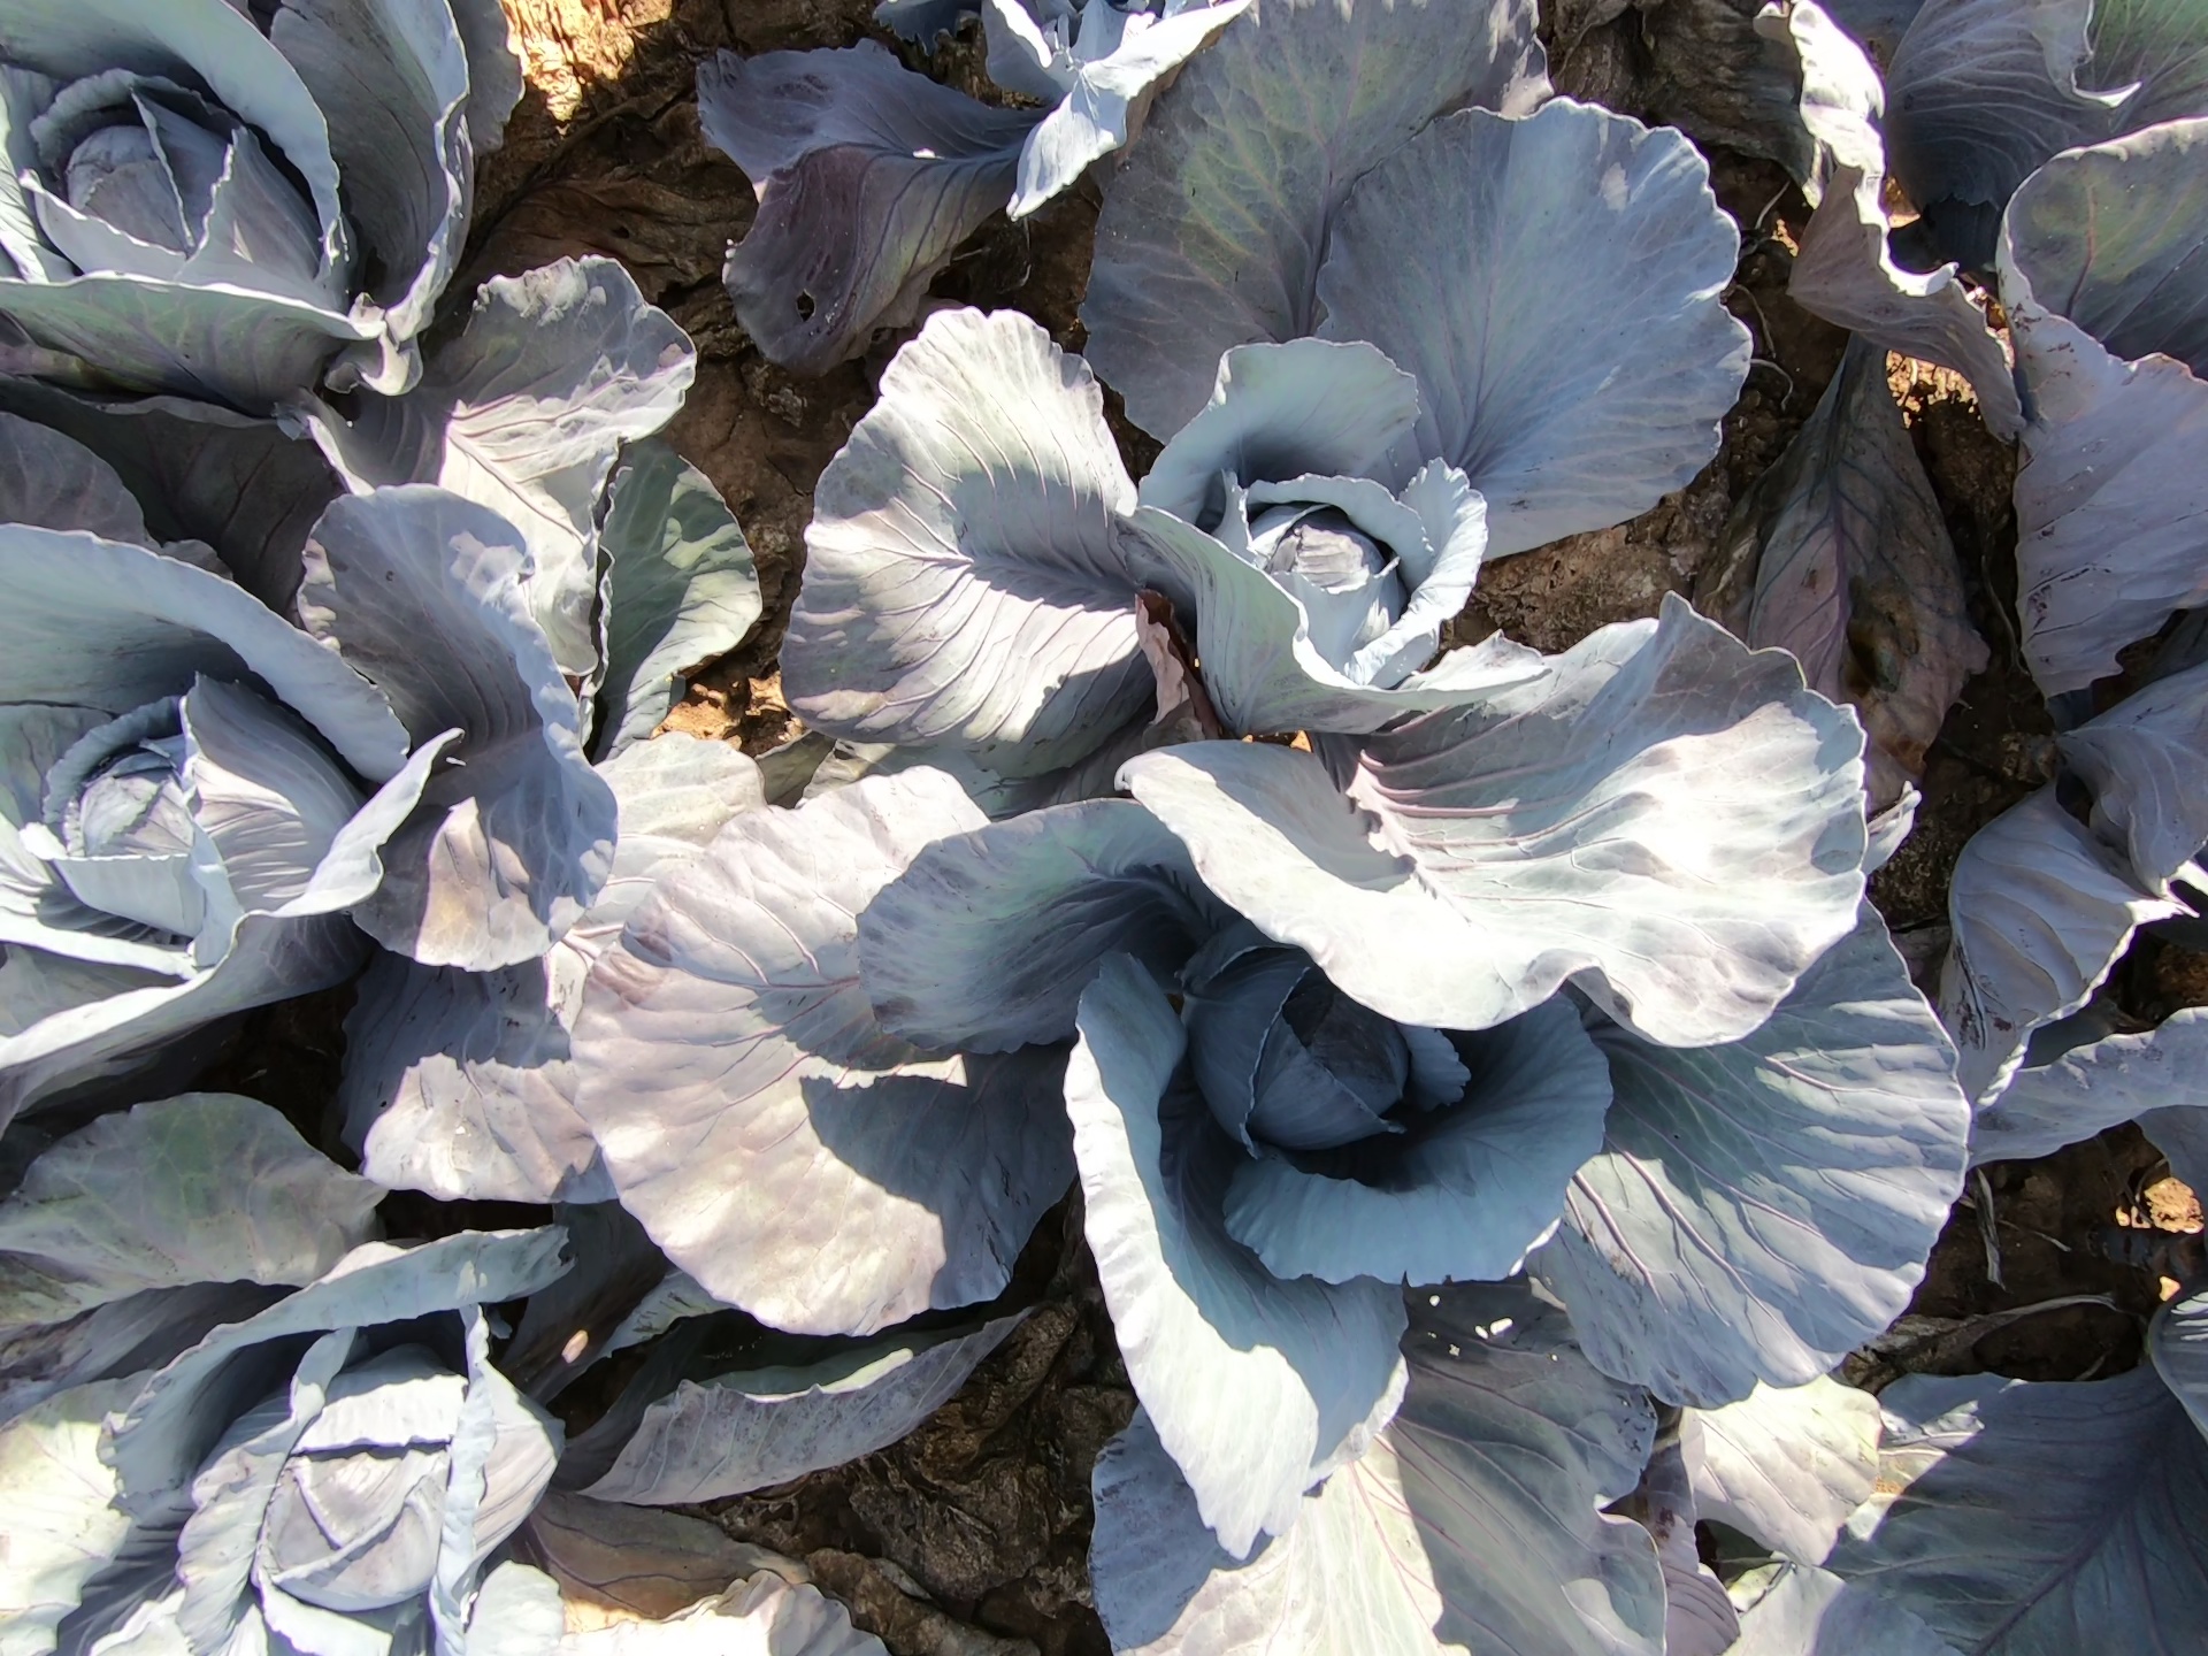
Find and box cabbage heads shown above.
[235,1363,529,1616]
[1234,511,1405,692]
[74,726,339,915]
[66,124,297,315]
[1213,944,1413,1145]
